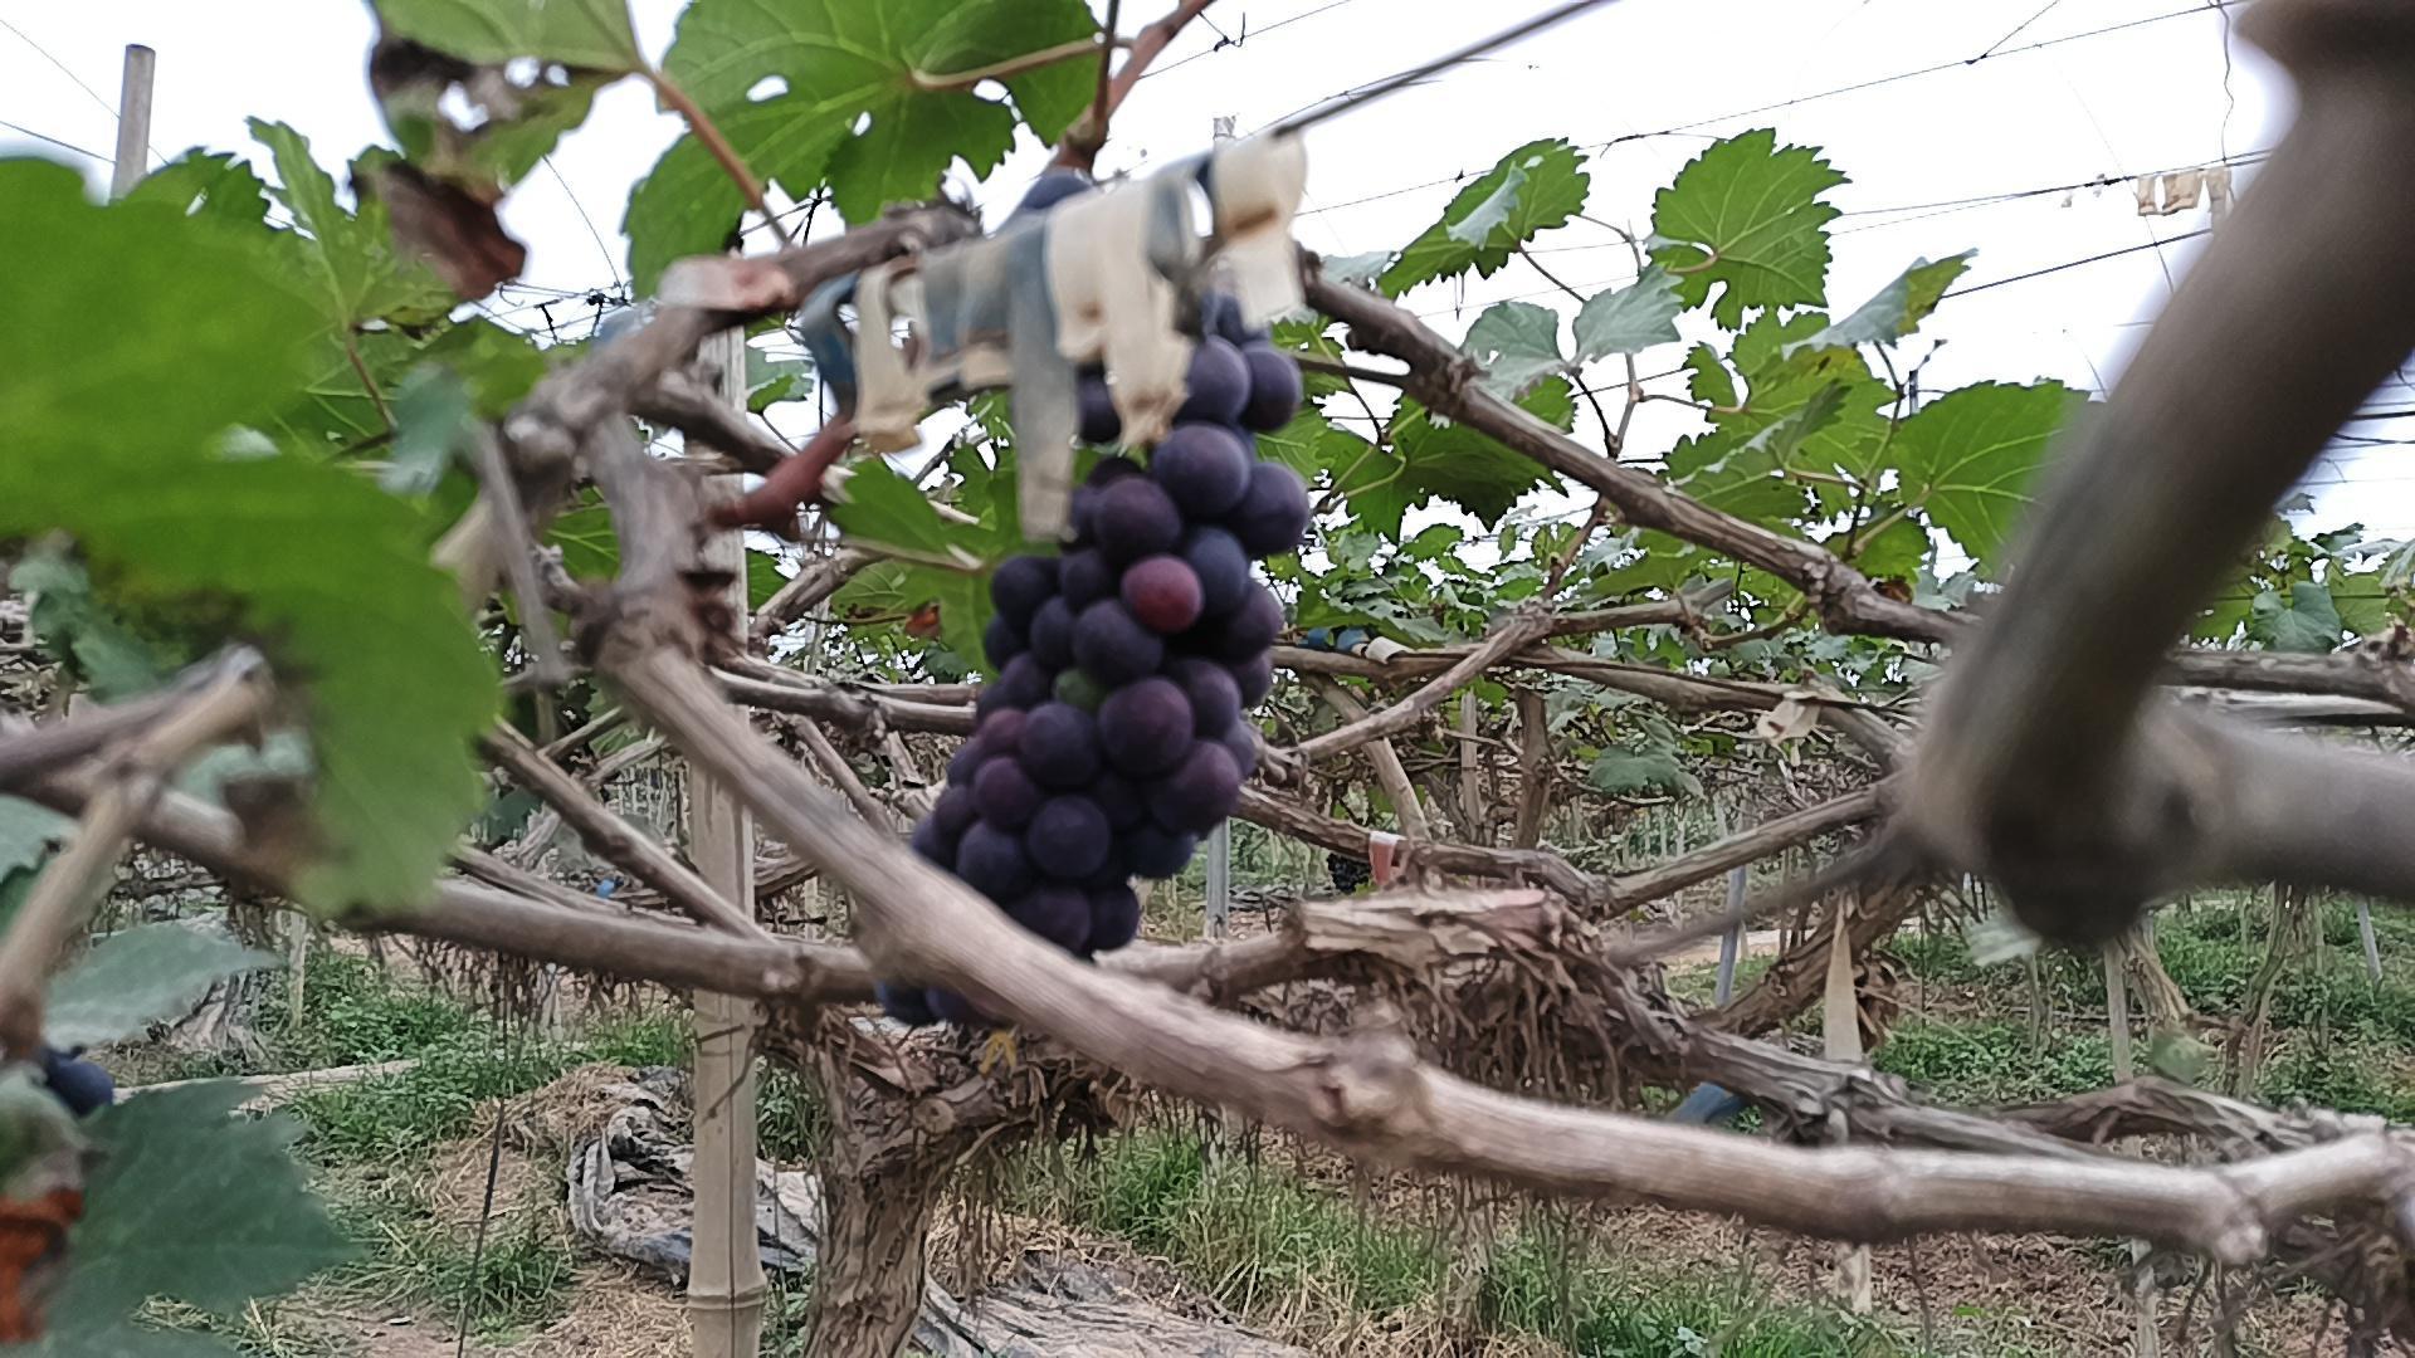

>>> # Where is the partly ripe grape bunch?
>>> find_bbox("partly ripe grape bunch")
[874,175,1309,1030]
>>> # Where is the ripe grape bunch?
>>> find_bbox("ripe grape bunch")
[36,1046,114,1118]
